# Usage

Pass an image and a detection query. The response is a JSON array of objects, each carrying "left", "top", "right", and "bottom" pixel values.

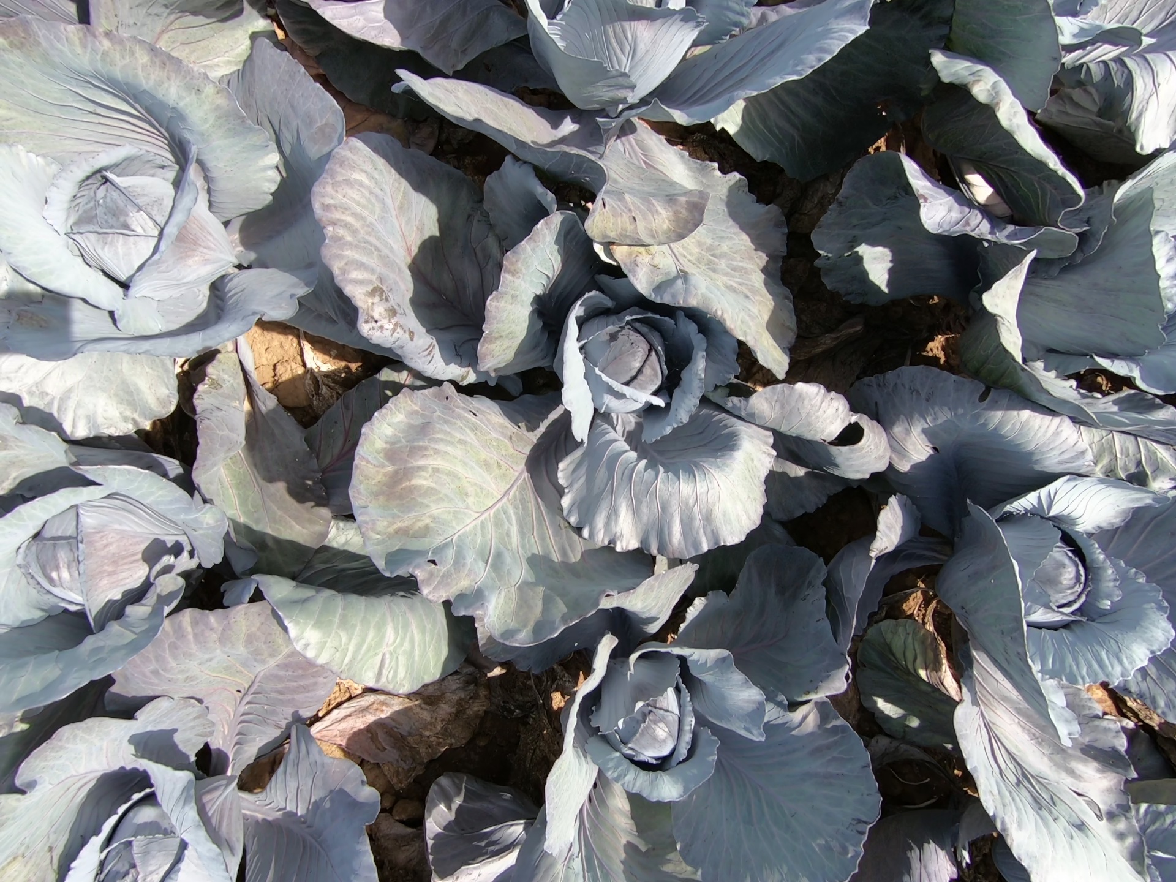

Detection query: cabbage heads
[
  {"left": 961, "top": 519, "right": 1091, "bottom": 628},
  {"left": 578, "top": 318, "right": 669, "bottom": 415},
  {"left": 25, "top": 489, "right": 179, "bottom": 611},
  {"left": 560, "top": 1, "right": 687, "bottom": 102},
  {"left": 599, "top": 668, "right": 696, "bottom": 766},
  {"left": 72, "top": 174, "right": 210, "bottom": 293},
  {"left": 92, "top": 784, "right": 241, "bottom": 880}
]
